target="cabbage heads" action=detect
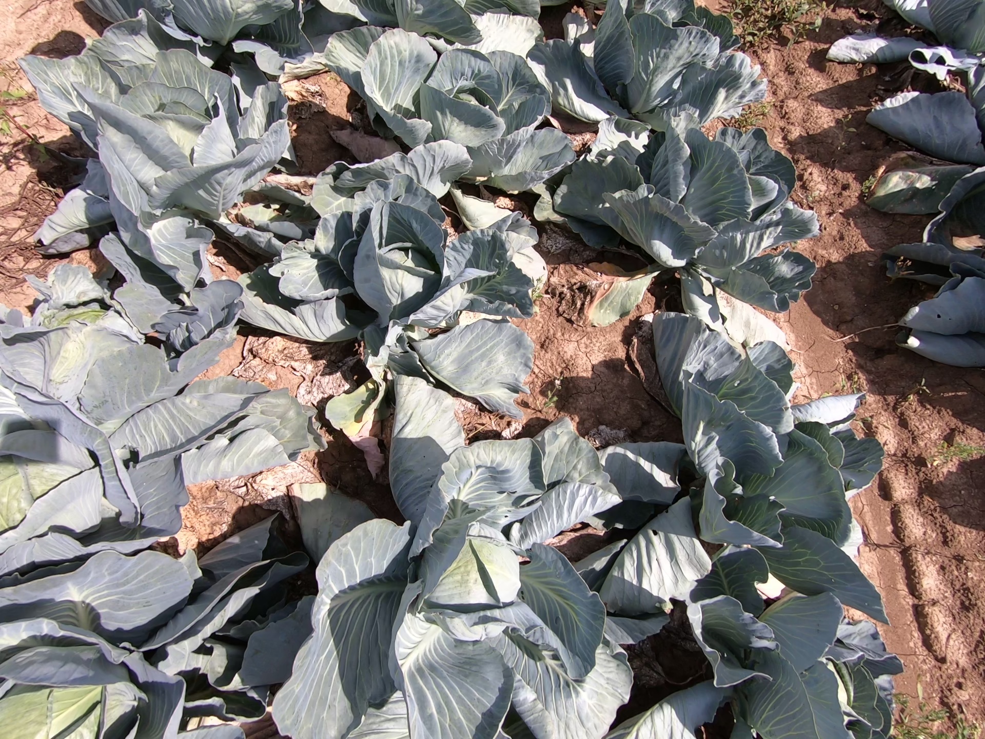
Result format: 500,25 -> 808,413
0,647 -> 142,738
1,429 -> 101,555
368,246 -> 435,316
52,313 -> 137,384
422,525 -> 522,624
139,115 -> 224,193
771,651 -> 853,731
442,92 -> 486,145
